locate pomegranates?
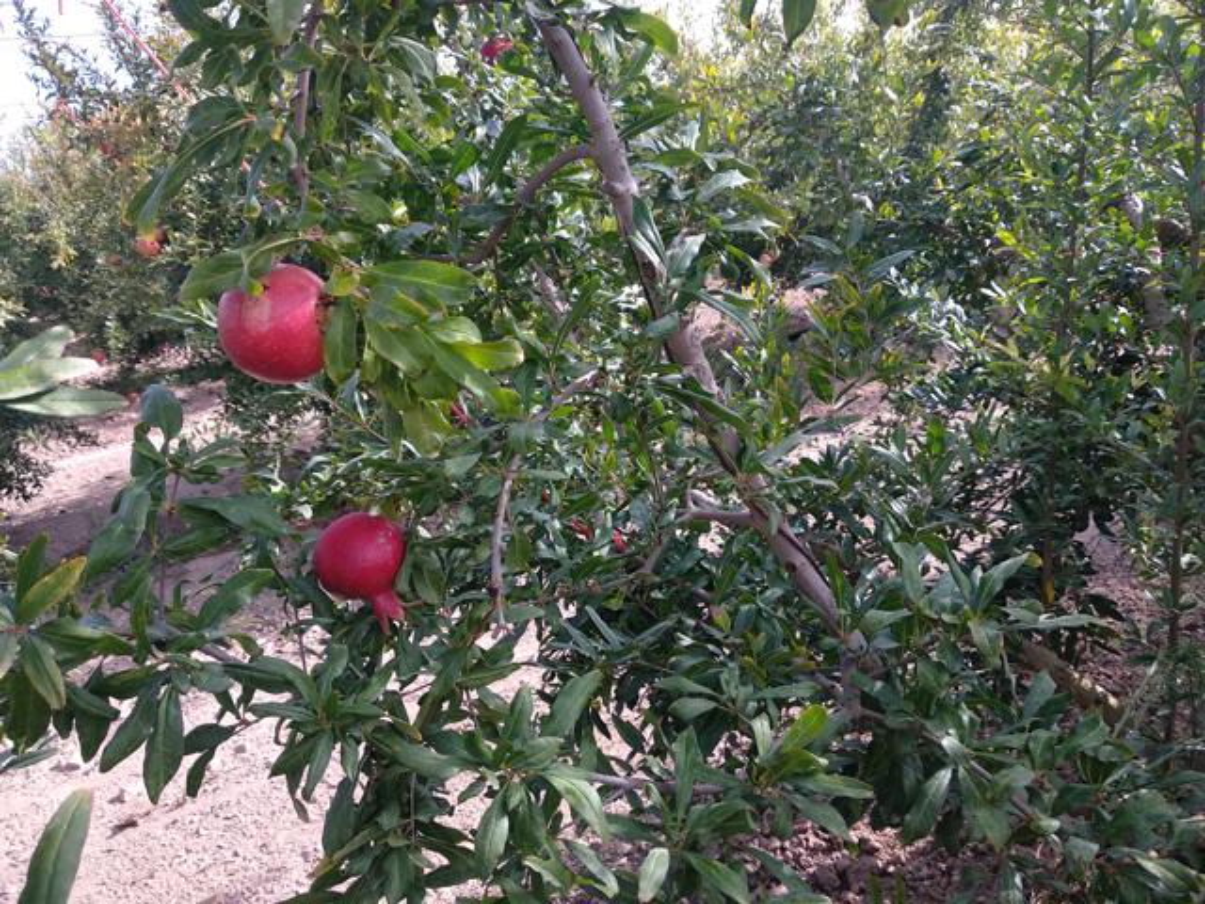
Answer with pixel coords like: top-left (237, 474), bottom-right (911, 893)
top-left (217, 262), bottom-right (326, 384)
top-left (313, 512), bottom-right (414, 635)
